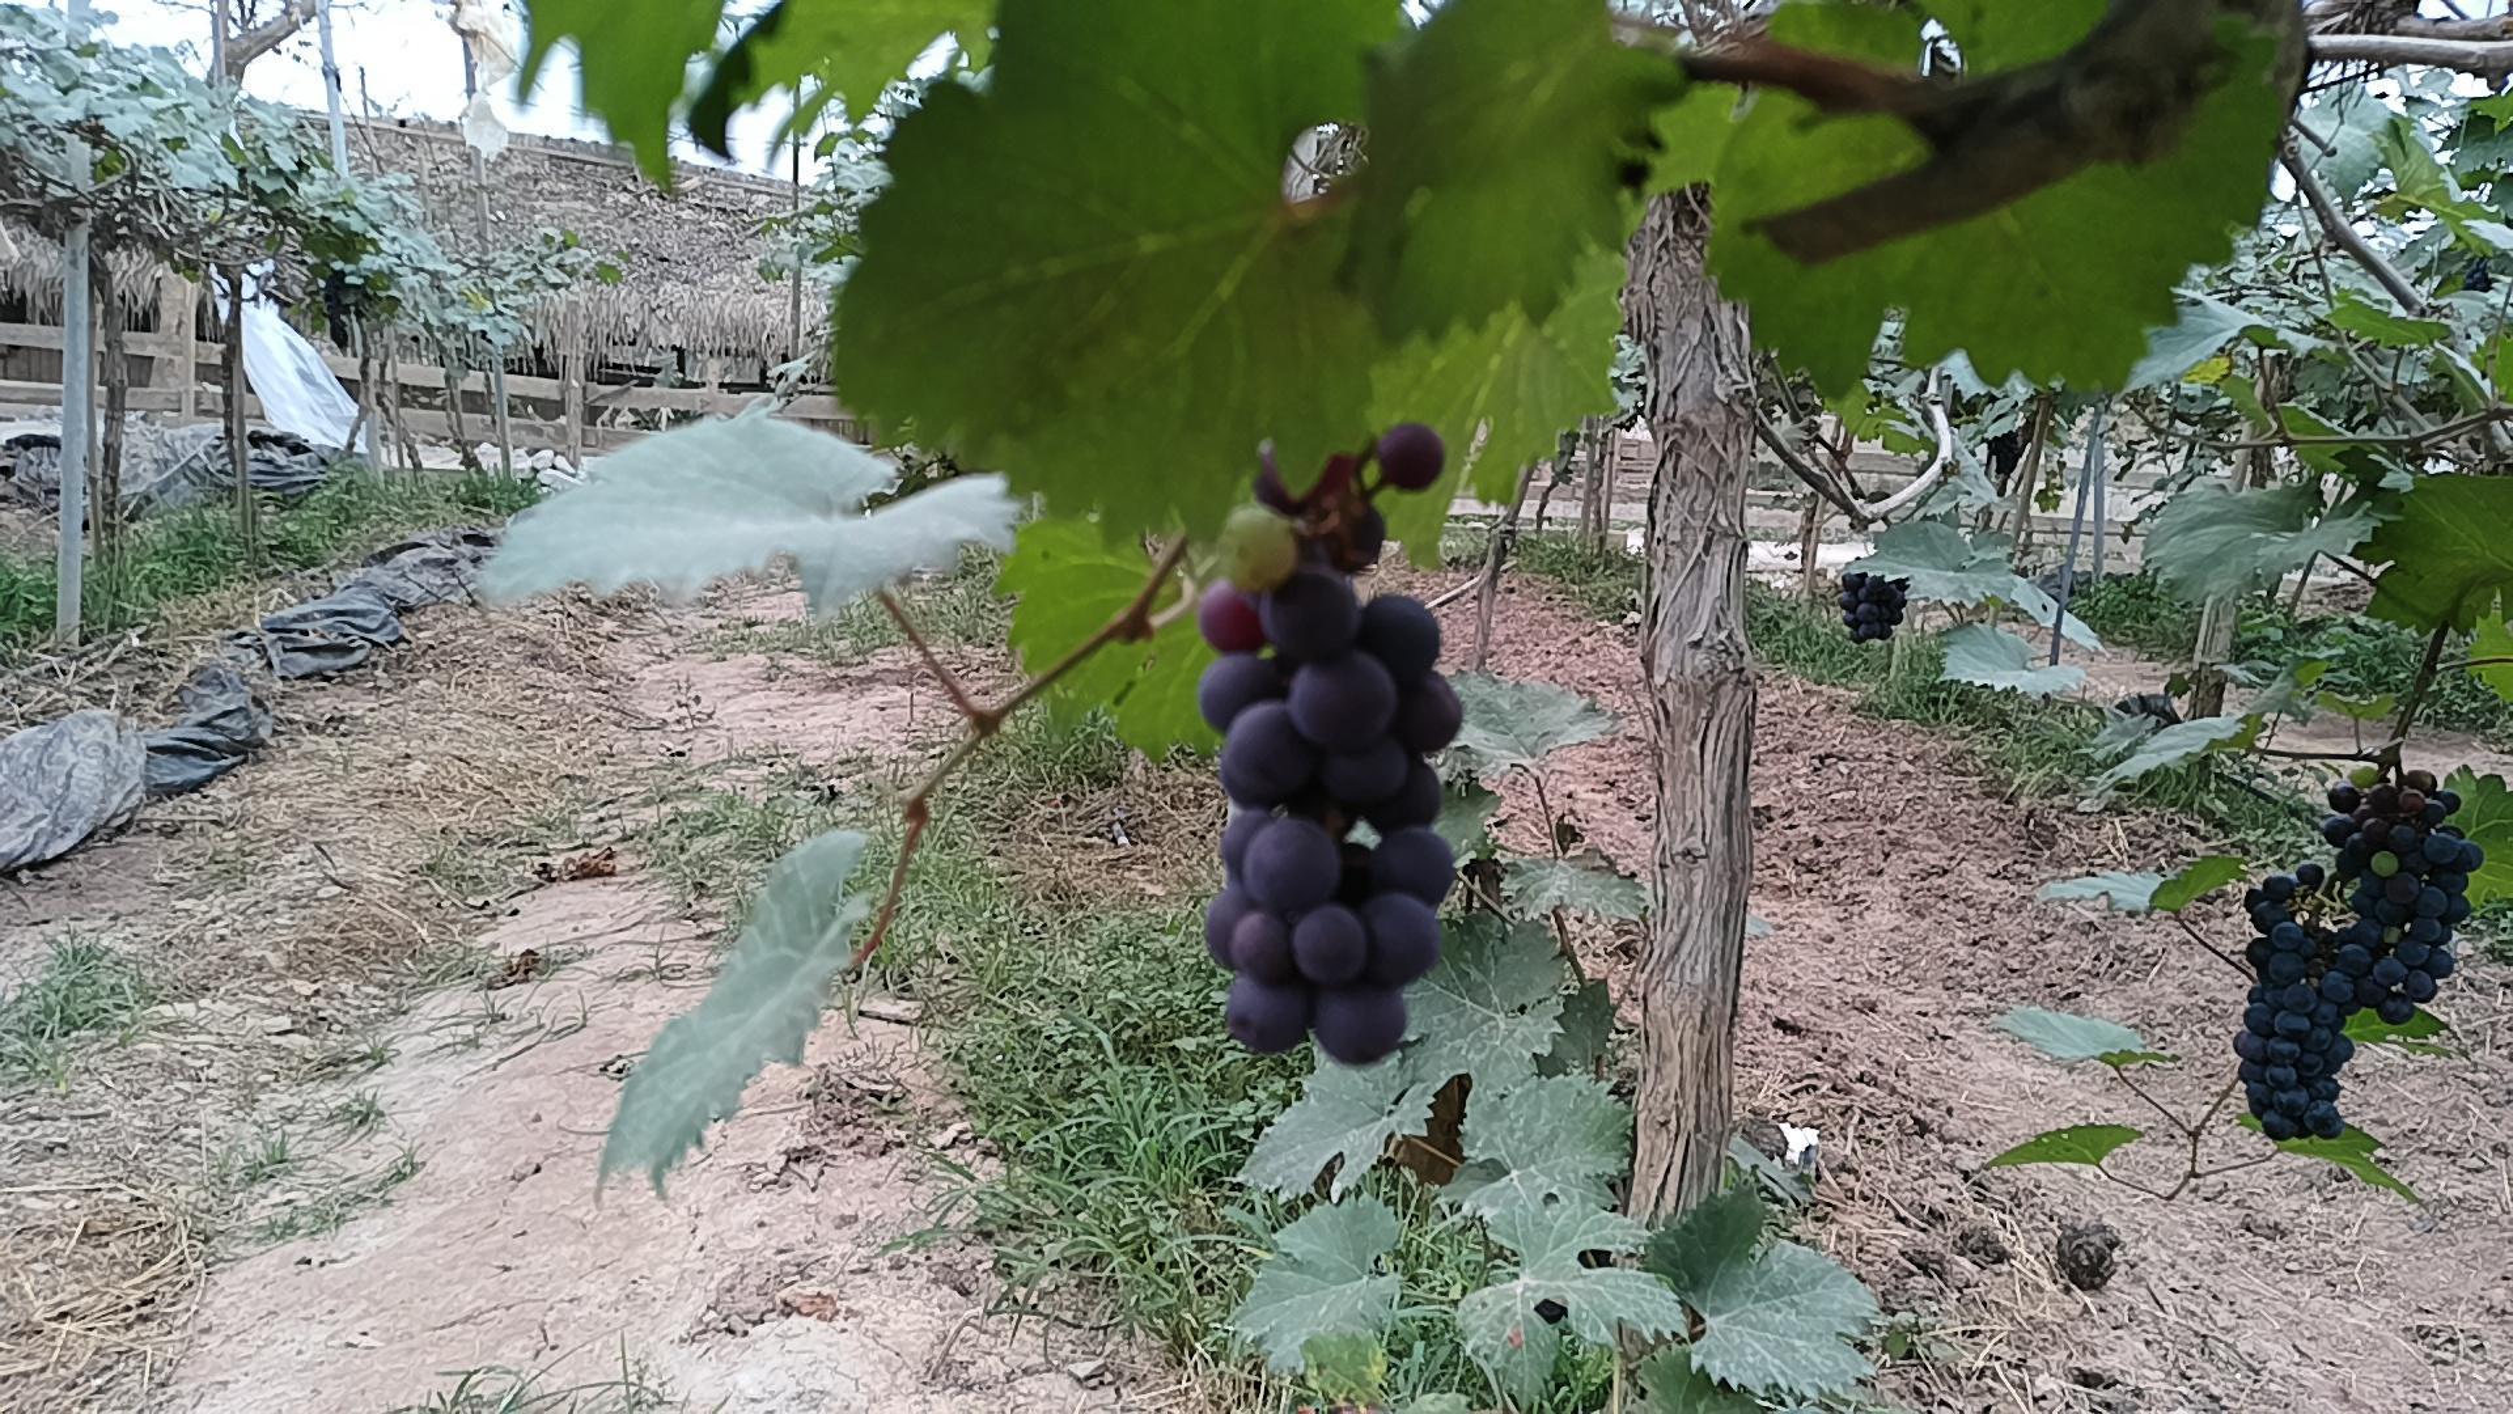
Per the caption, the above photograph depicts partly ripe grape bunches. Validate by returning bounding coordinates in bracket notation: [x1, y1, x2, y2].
[2322, 766, 2483, 1025]
[1198, 424, 1459, 1062]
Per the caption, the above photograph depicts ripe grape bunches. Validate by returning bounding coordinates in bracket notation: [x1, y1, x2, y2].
[1818, 543, 1910, 644]
[2233, 861, 2379, 1140]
